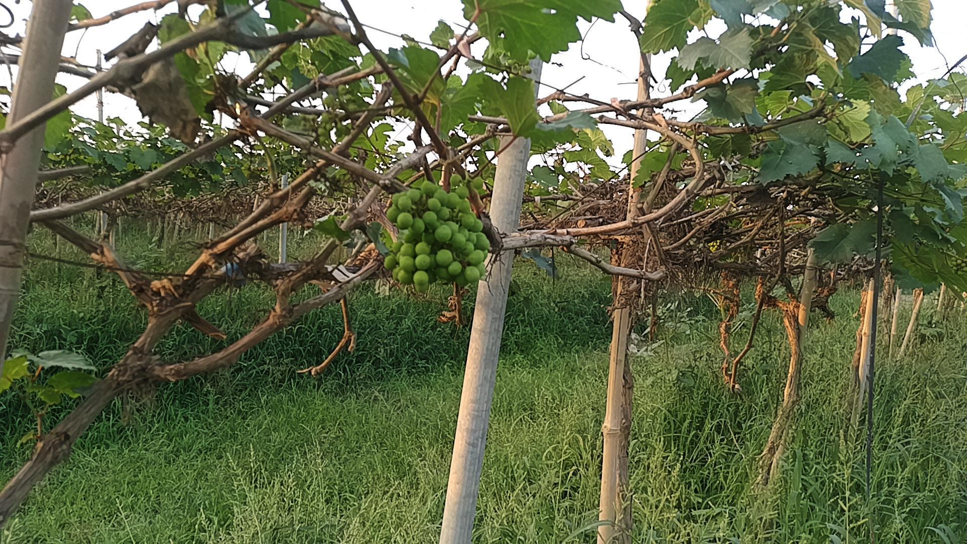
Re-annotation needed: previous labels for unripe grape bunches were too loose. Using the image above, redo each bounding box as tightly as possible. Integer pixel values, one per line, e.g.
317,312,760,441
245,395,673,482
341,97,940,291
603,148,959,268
384,176,489,292
315,85,353,144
